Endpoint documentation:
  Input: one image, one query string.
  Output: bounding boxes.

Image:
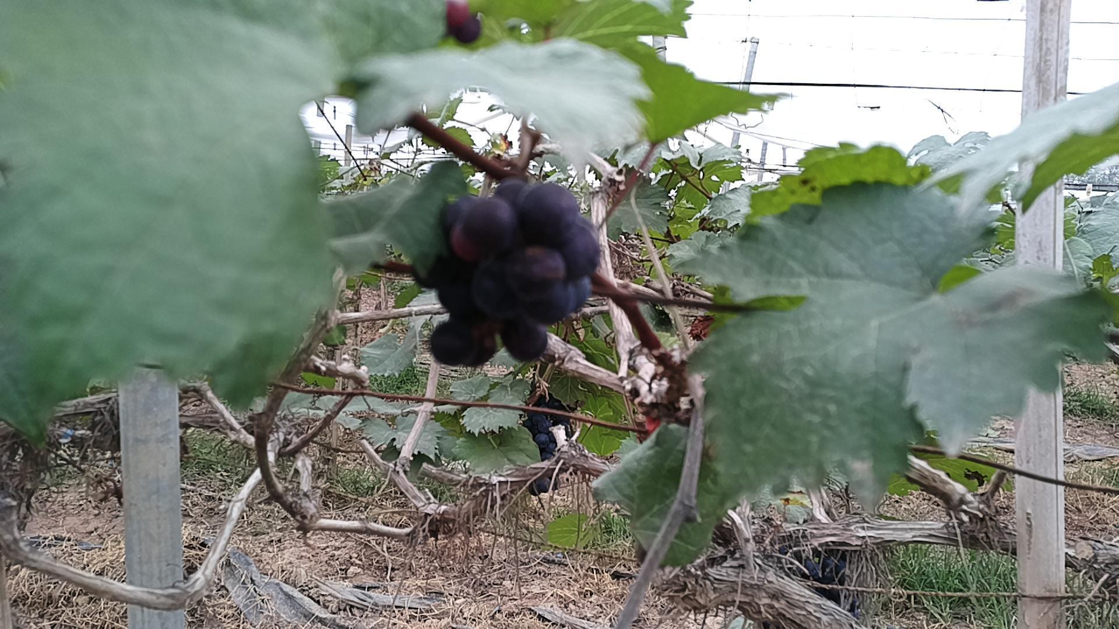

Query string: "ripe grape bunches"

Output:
[426,179,607,366]
[447,0,482,44]
[523,391,575,496]
[779,546,859,618]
